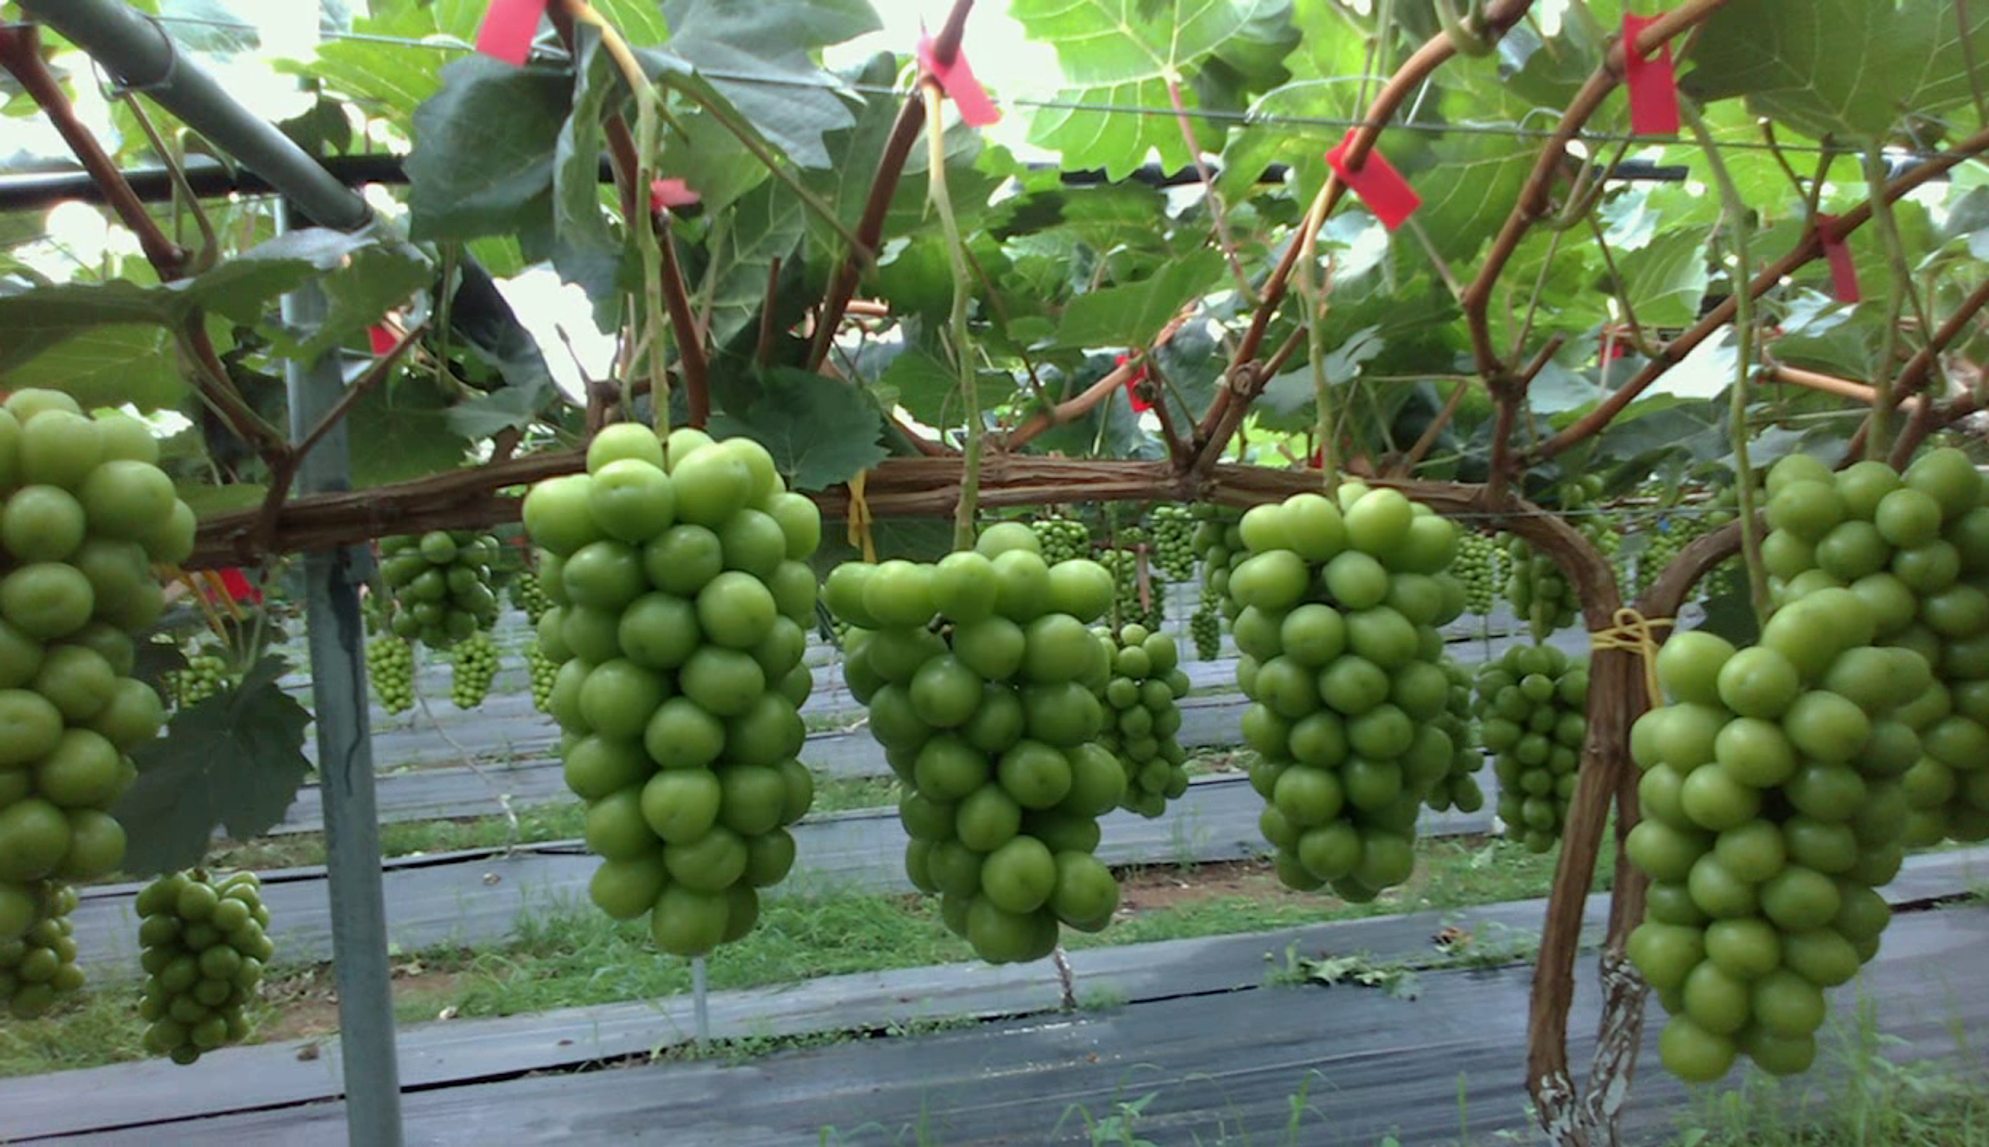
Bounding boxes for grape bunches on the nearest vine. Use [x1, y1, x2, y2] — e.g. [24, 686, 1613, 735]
[1763, 448, 1987, 846]
[1626, 585, 1930, 1085]
[521, 422, 821, 954]
[824, 523, 1125, 964]
[1232, 486, 1466, 902]
[0, 390, 198, 938]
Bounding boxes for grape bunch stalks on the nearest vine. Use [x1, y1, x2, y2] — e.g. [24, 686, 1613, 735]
[1299, 177, 1336, 502]
[559, 0, 666, 435]
[1673, 88, 1767, 631]
[920, 78, 982, 551]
